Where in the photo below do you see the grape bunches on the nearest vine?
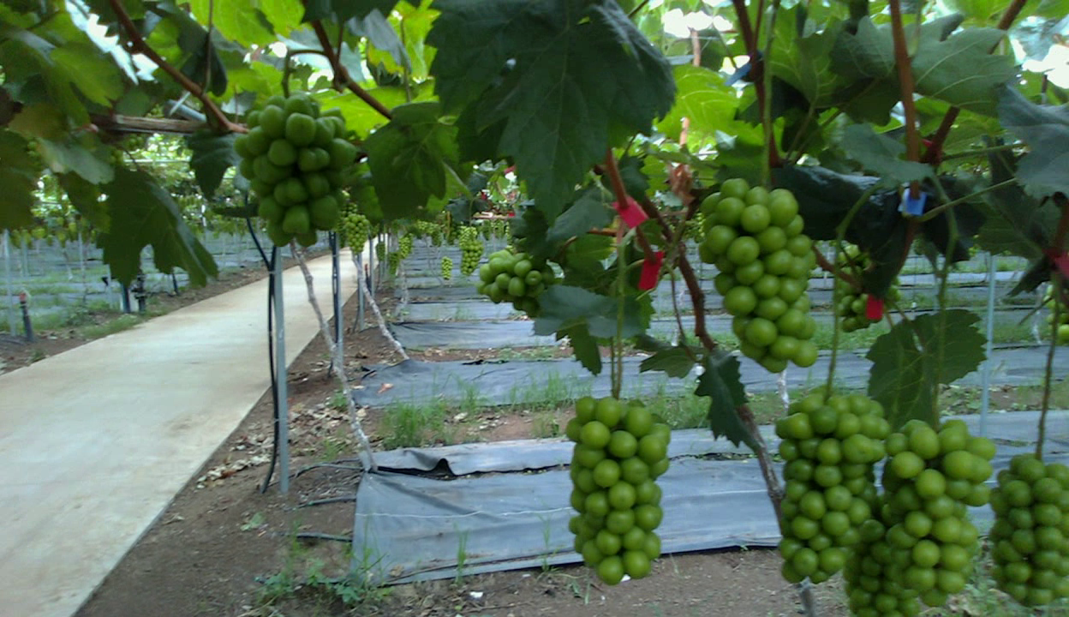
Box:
[988,452,1068,608]
[881,419,996,607]
[697,177,818,374]
[565,395,671,585]
[840,491,921,616]
[776,385,890,584]
[234,93,357,247]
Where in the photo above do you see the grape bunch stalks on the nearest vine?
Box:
[282,47,324,99]
[1036,274,1061,460]
[761,0,780,192]
[929,175,959,434]
[615,220,627,398]
[823,181,881,407]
